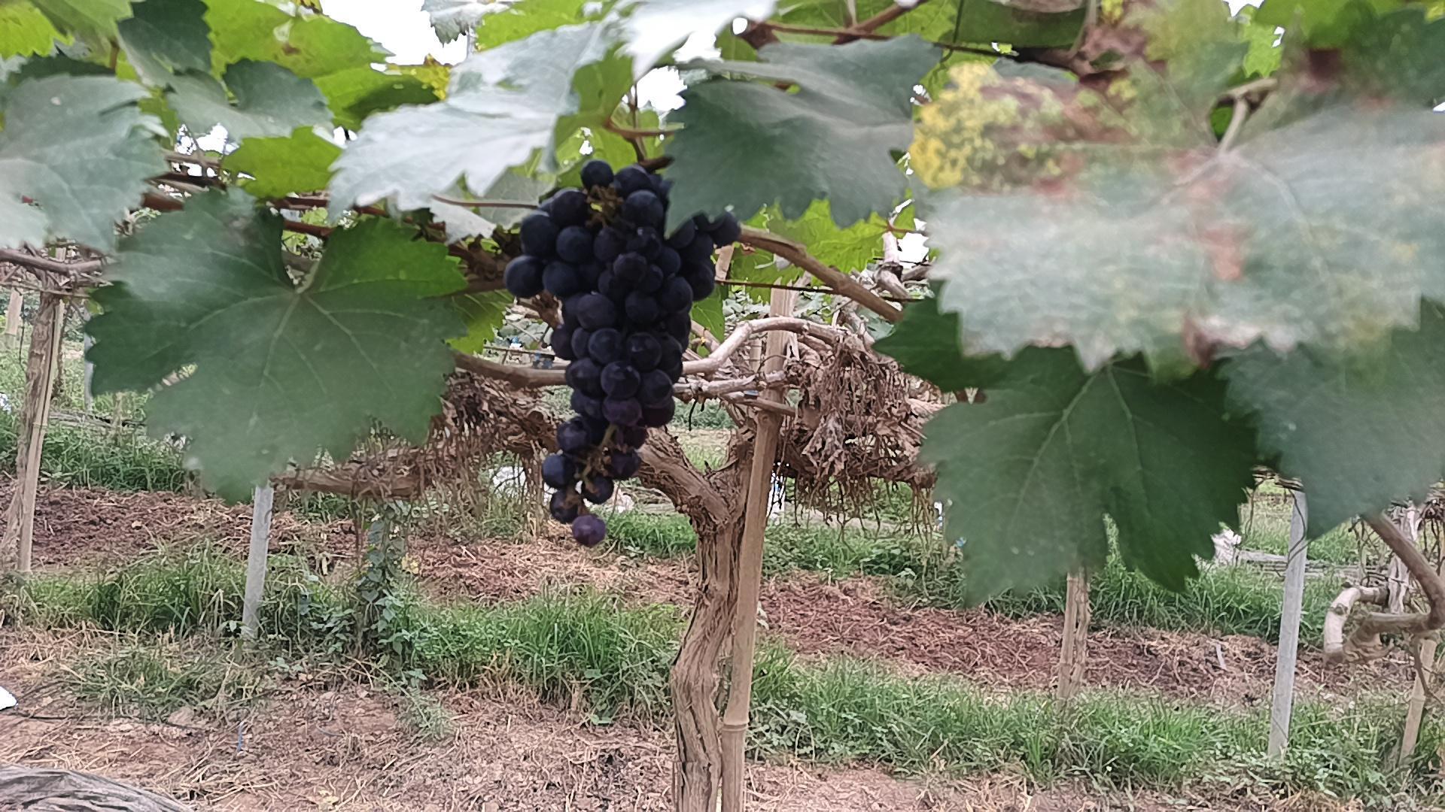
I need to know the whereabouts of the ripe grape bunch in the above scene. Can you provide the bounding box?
[504,157,741,545]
